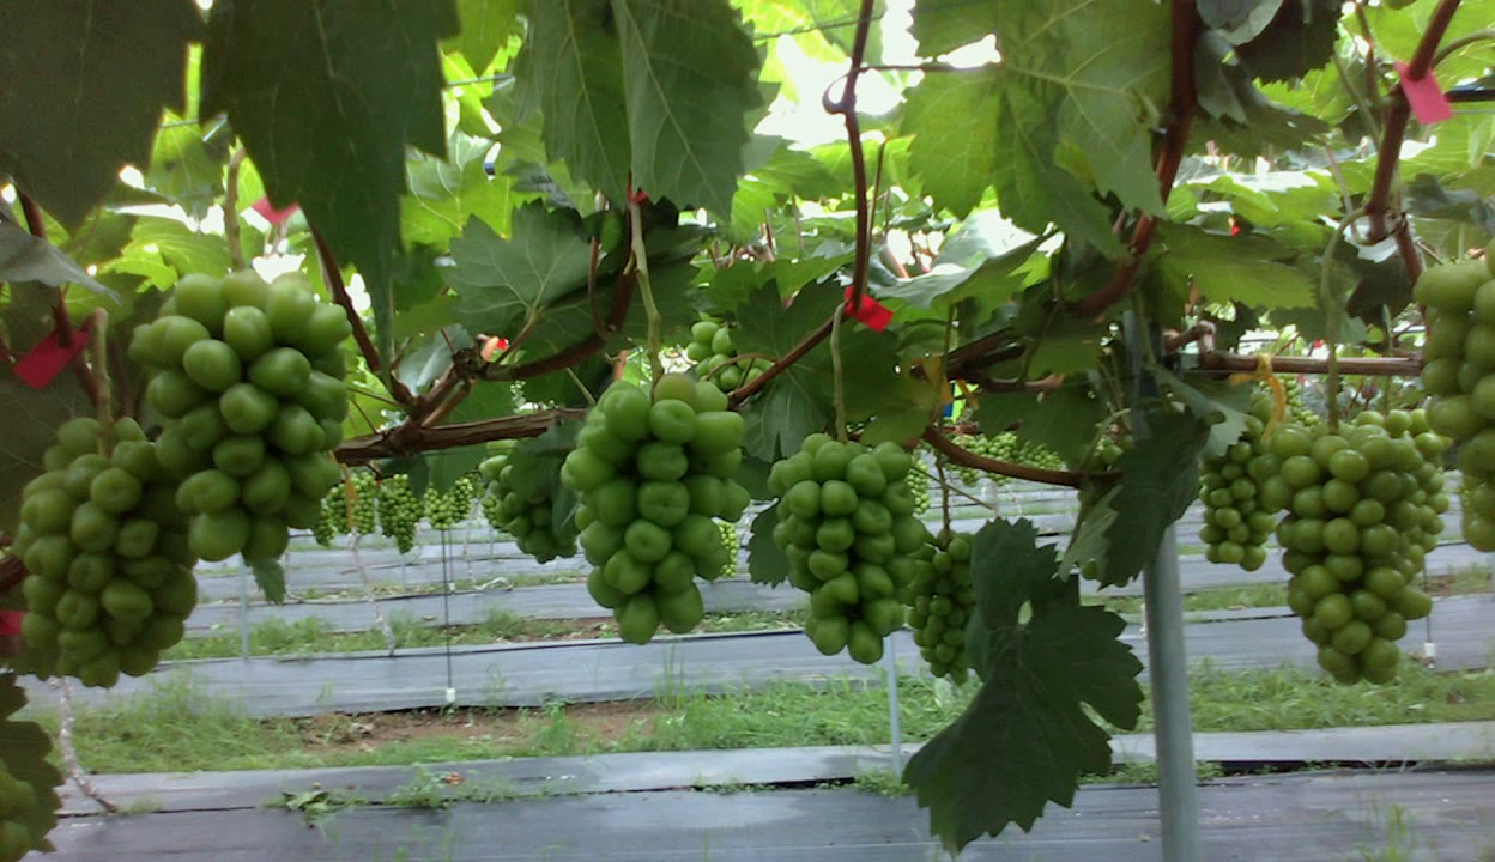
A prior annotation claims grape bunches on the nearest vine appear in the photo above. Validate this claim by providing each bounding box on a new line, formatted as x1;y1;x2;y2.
1412;238;1494;553
767;433;926;662
128;267;351;561
8;414;198;688
1258;421;1433;686
562;374;752;645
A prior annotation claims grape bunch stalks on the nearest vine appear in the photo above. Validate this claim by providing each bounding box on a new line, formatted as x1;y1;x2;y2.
222;147;249;268
830;302;848;439
79;309;111;450
1321;207;1367;433
622;201;667;386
